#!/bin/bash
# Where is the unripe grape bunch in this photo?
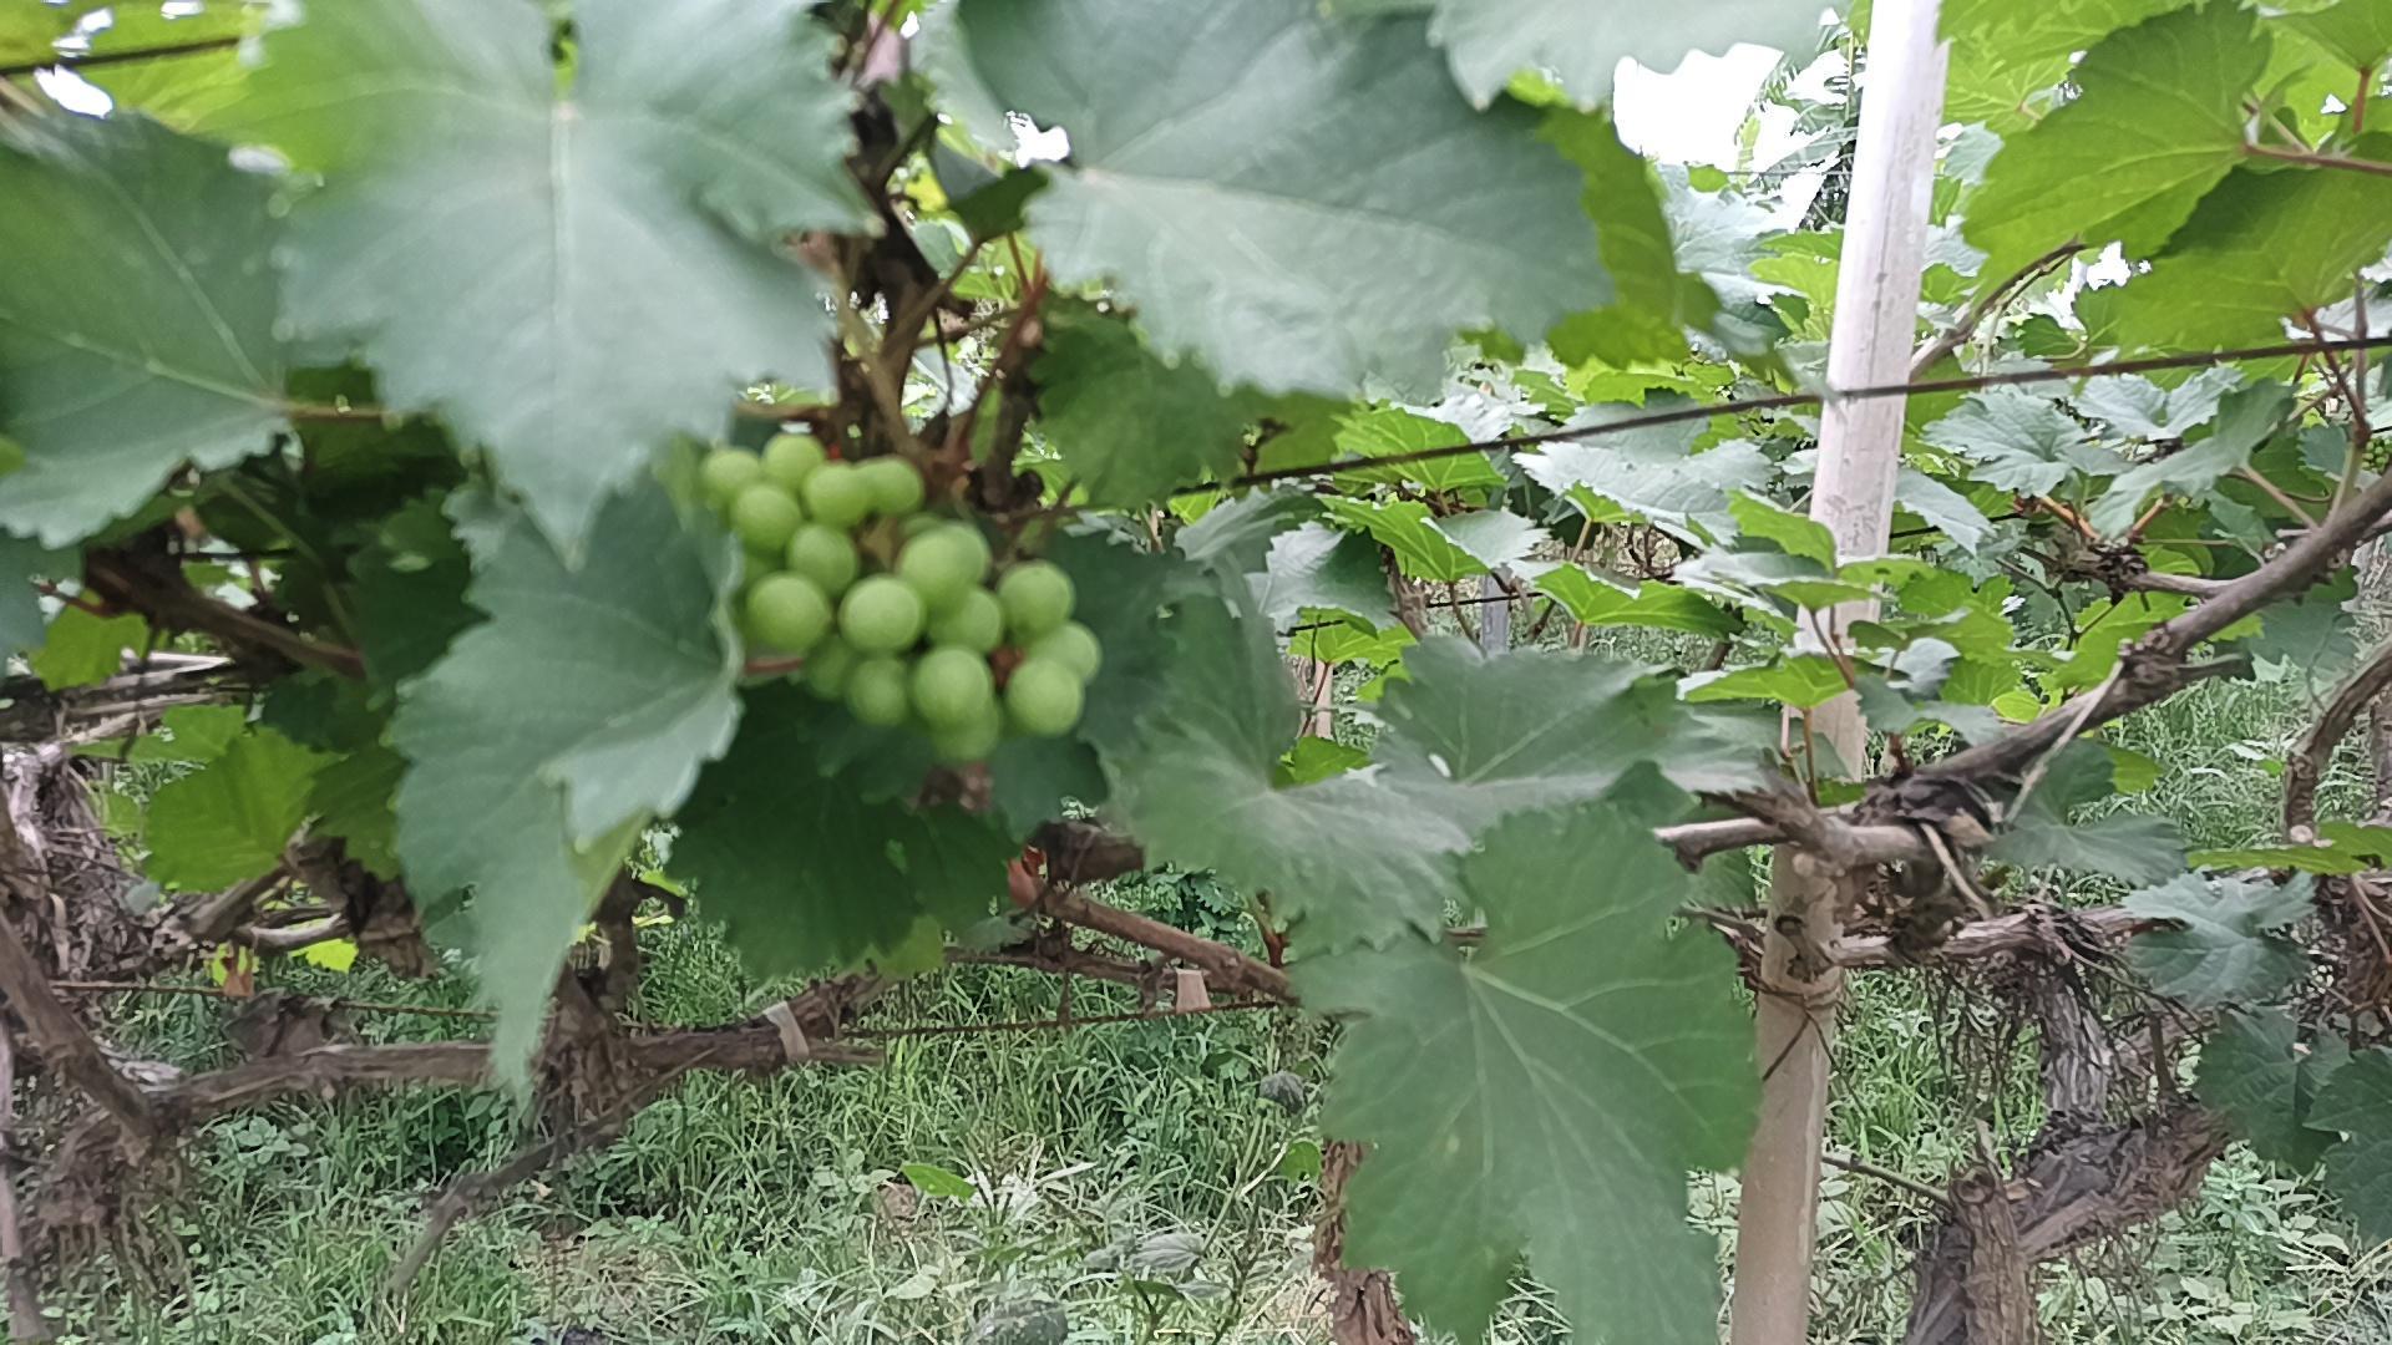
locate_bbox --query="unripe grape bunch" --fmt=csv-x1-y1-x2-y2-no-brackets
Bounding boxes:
694,433,1100,765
